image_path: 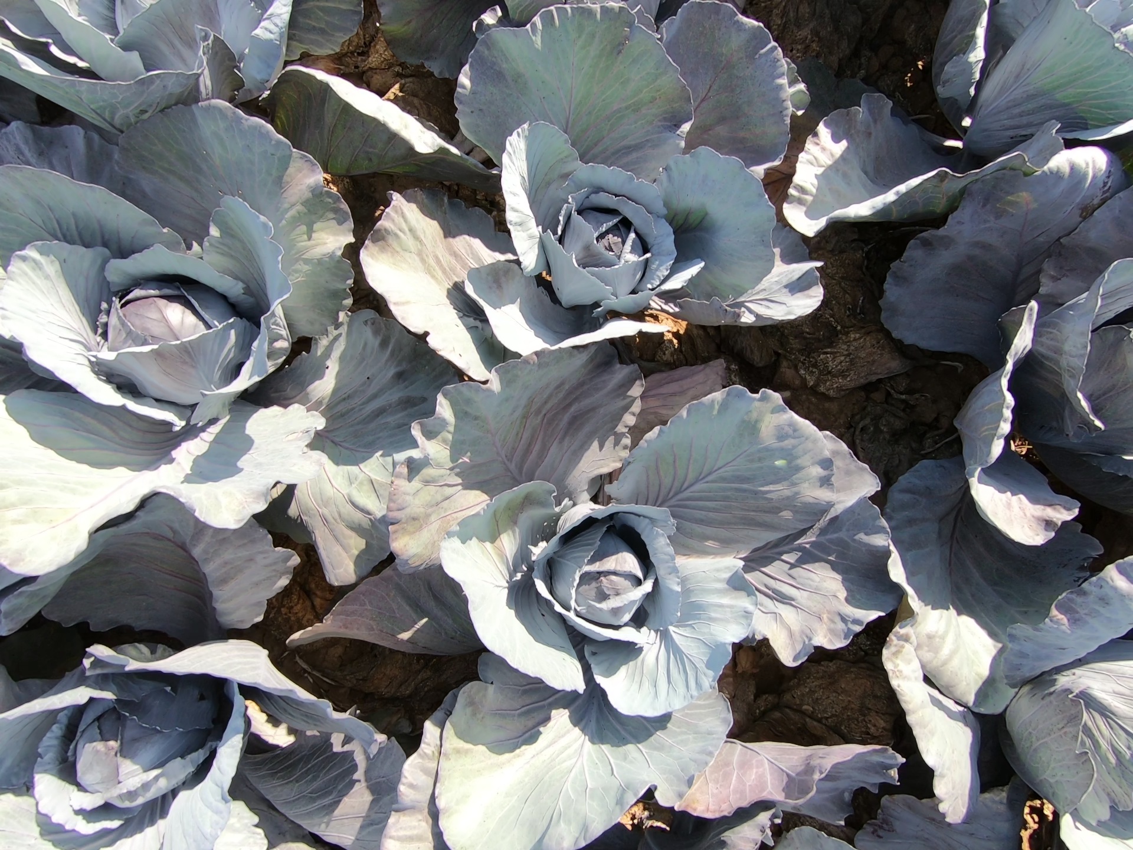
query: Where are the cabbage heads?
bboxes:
[559,531,644,627]
[77,686,199,790]
[111,281,240,404]
[118,1,223,73]
[574,217,641,288]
